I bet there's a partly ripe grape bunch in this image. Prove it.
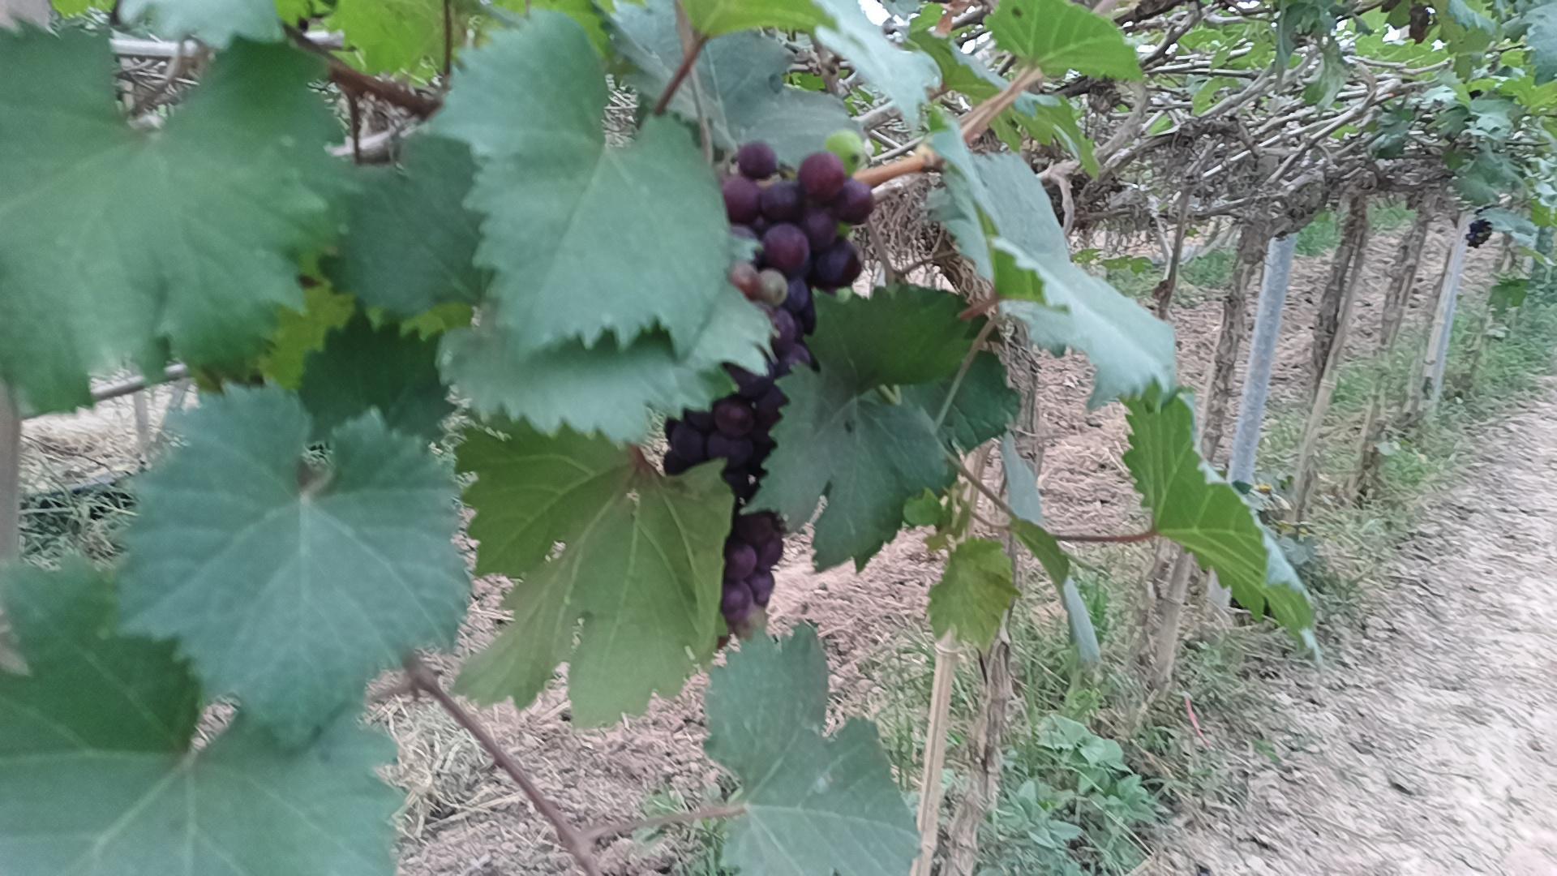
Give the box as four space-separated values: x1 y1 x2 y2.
663 142 873 633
